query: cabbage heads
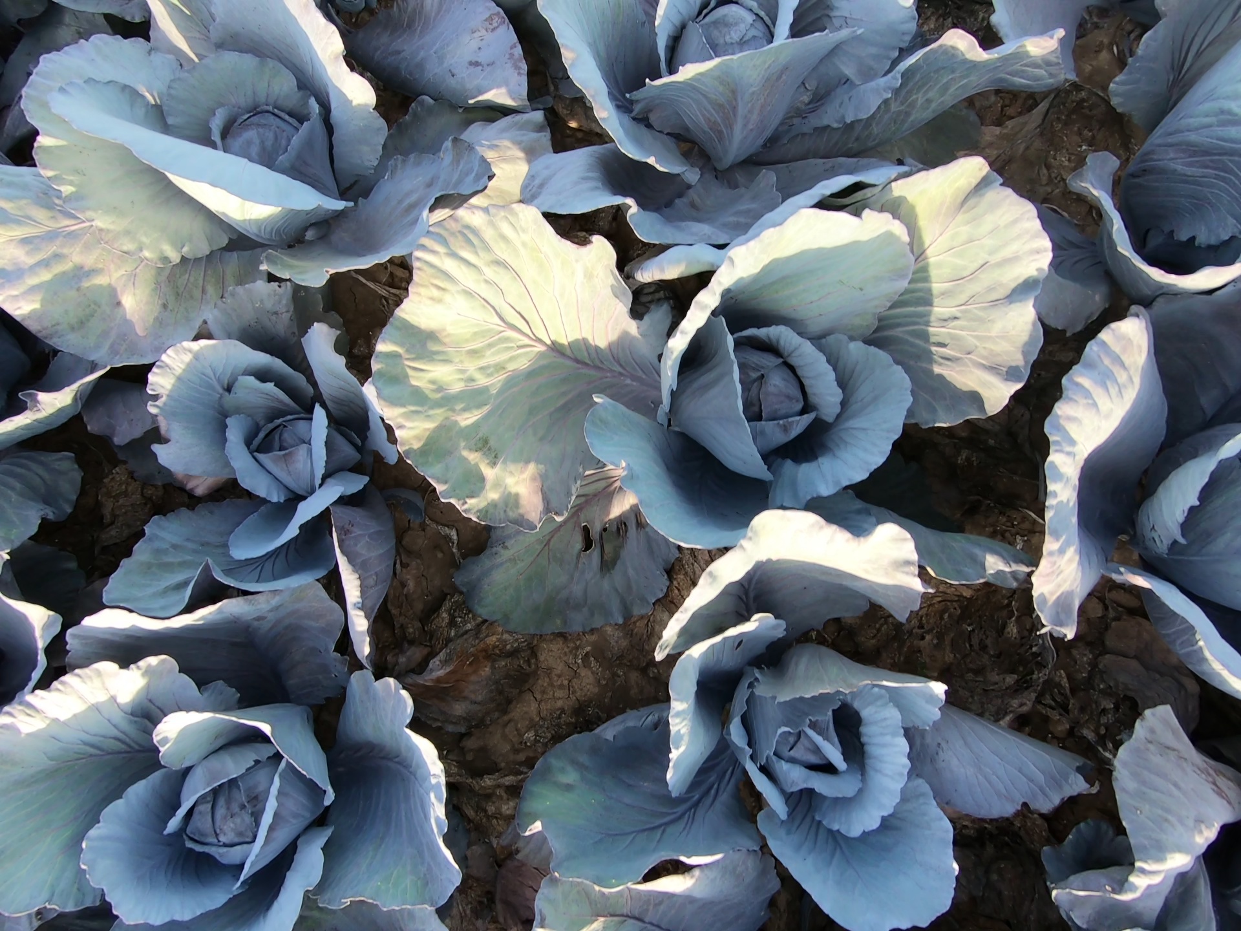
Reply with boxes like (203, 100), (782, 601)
(222, 108), (317, 218)
(188, 759), (303, 864)
(260, 420), (343, 494)
(700, 350), (805, 451)
(770, 695), (837, 764)
(679, 1), (775, 109)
